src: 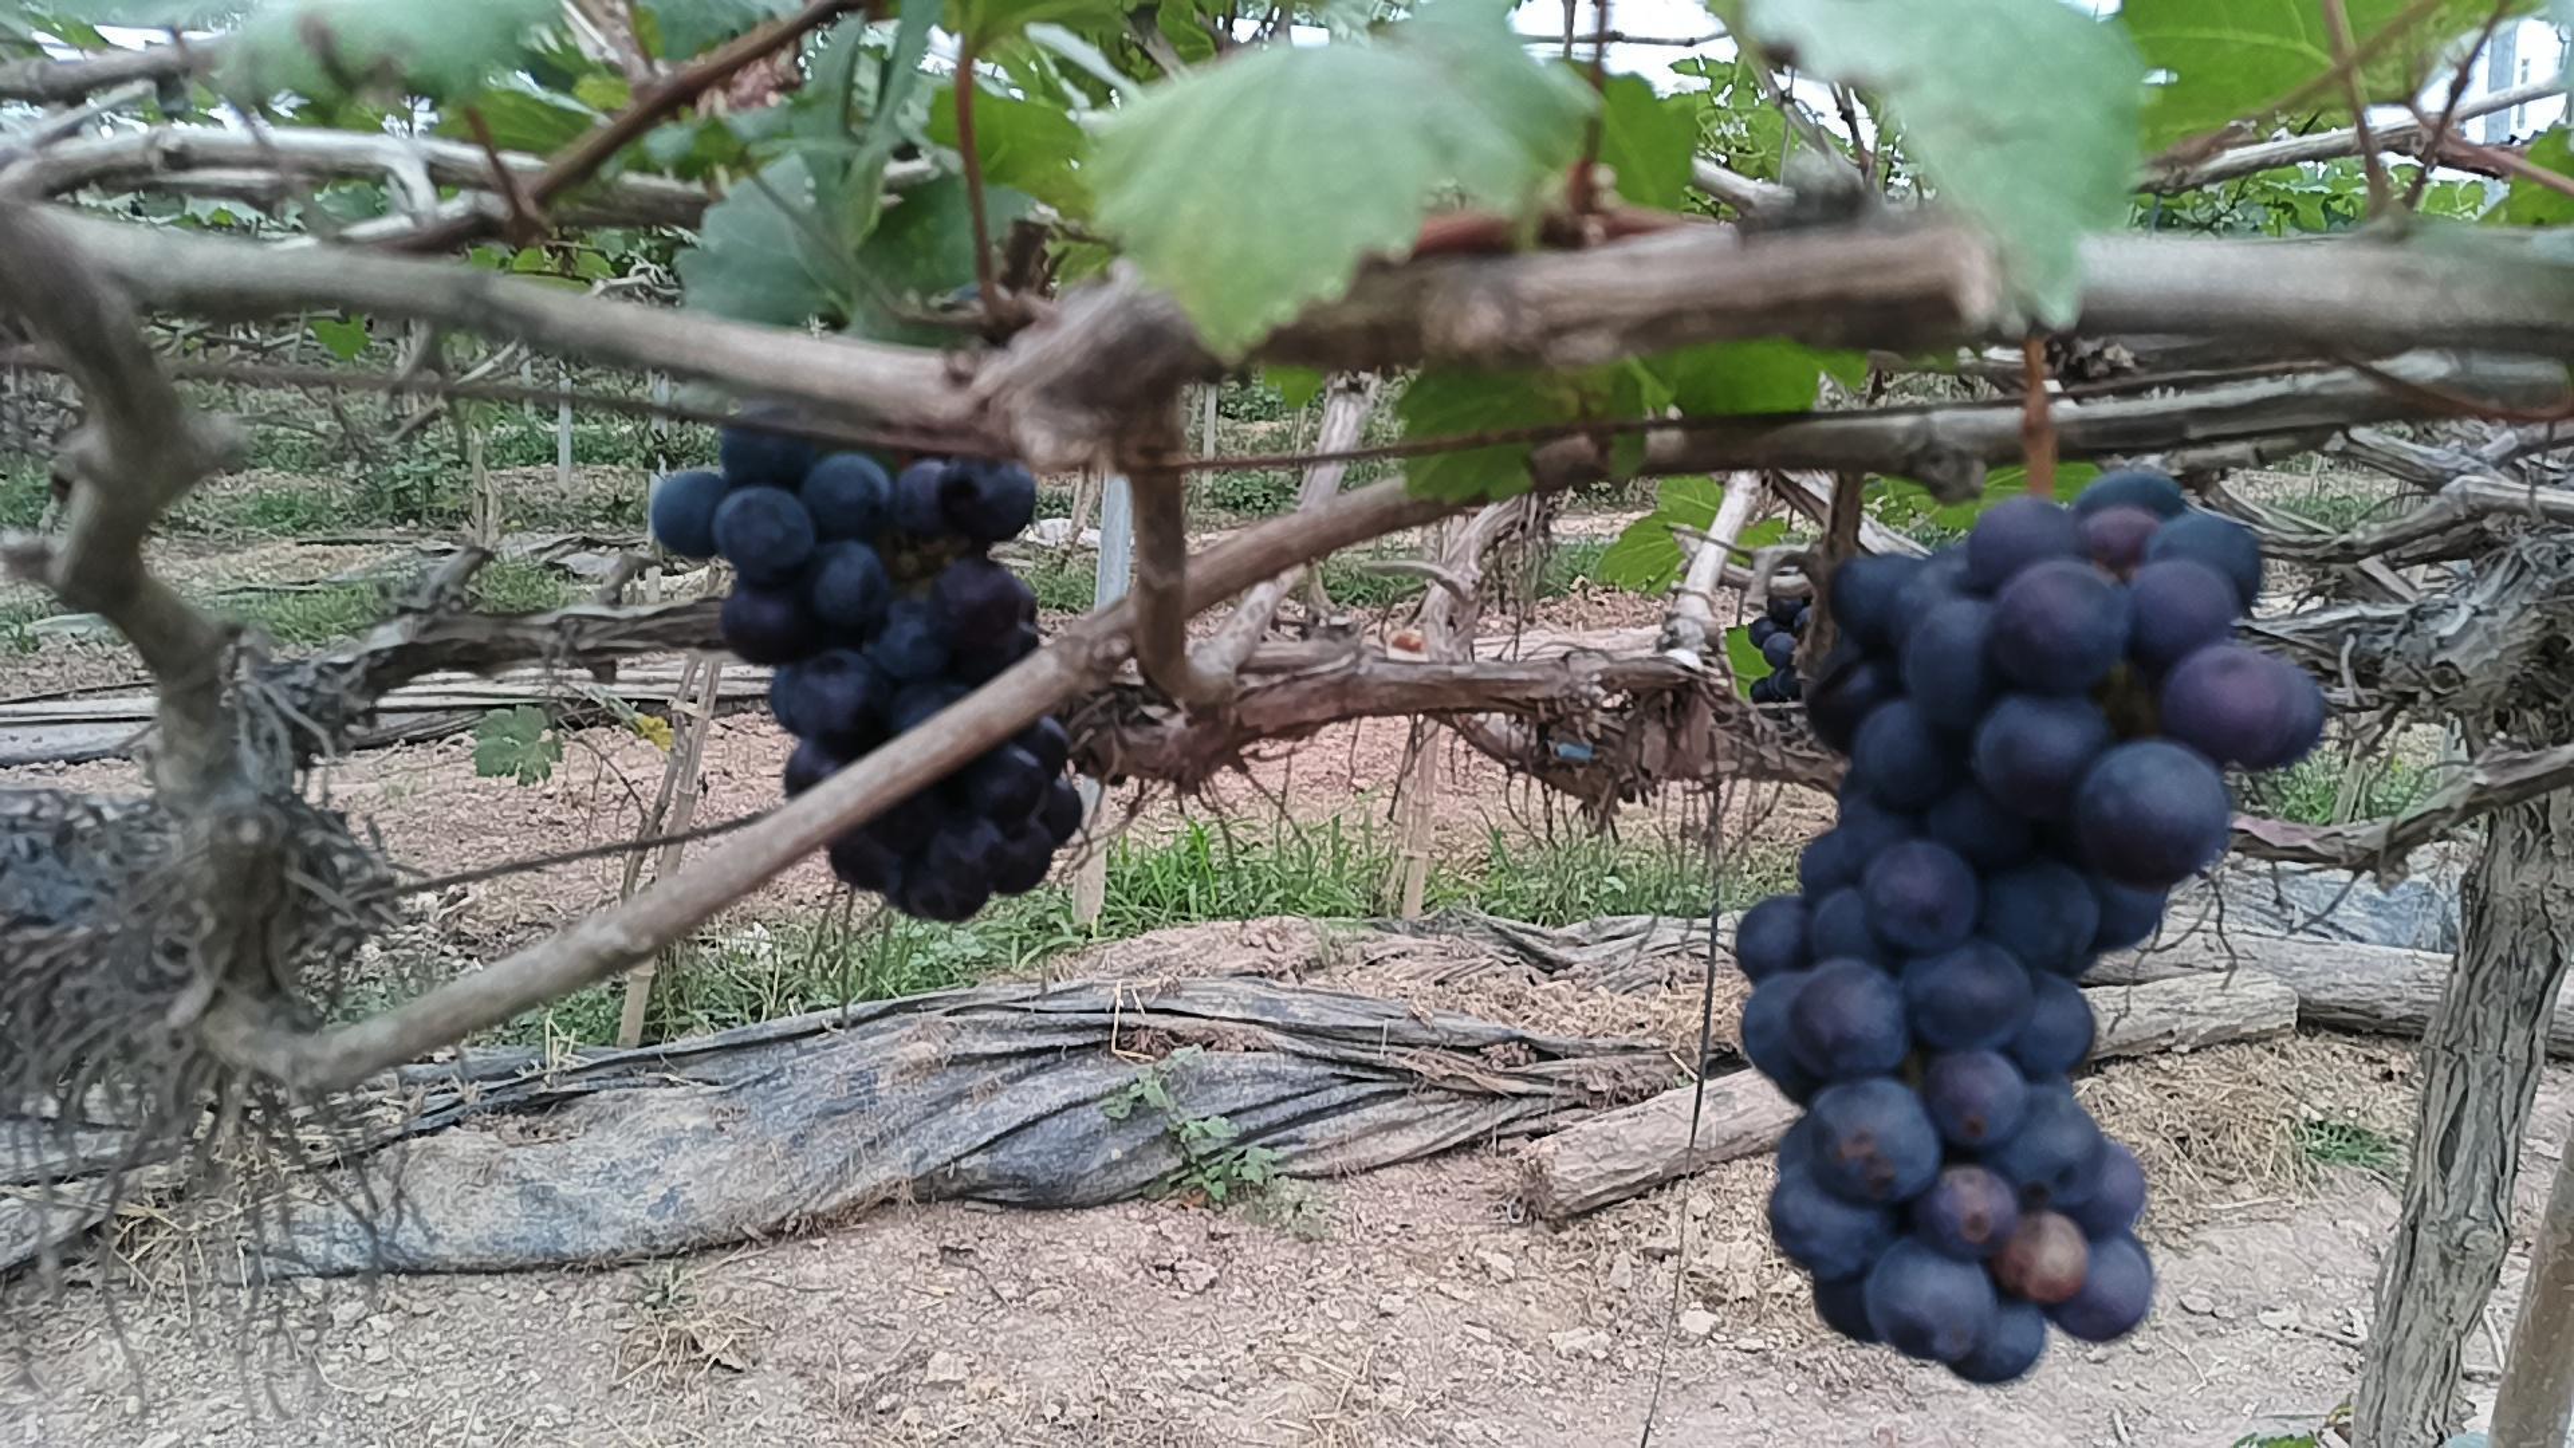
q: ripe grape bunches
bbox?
[1740,472,2323,1382]
[648,405,1089,924]
[1727,546,1809,703]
